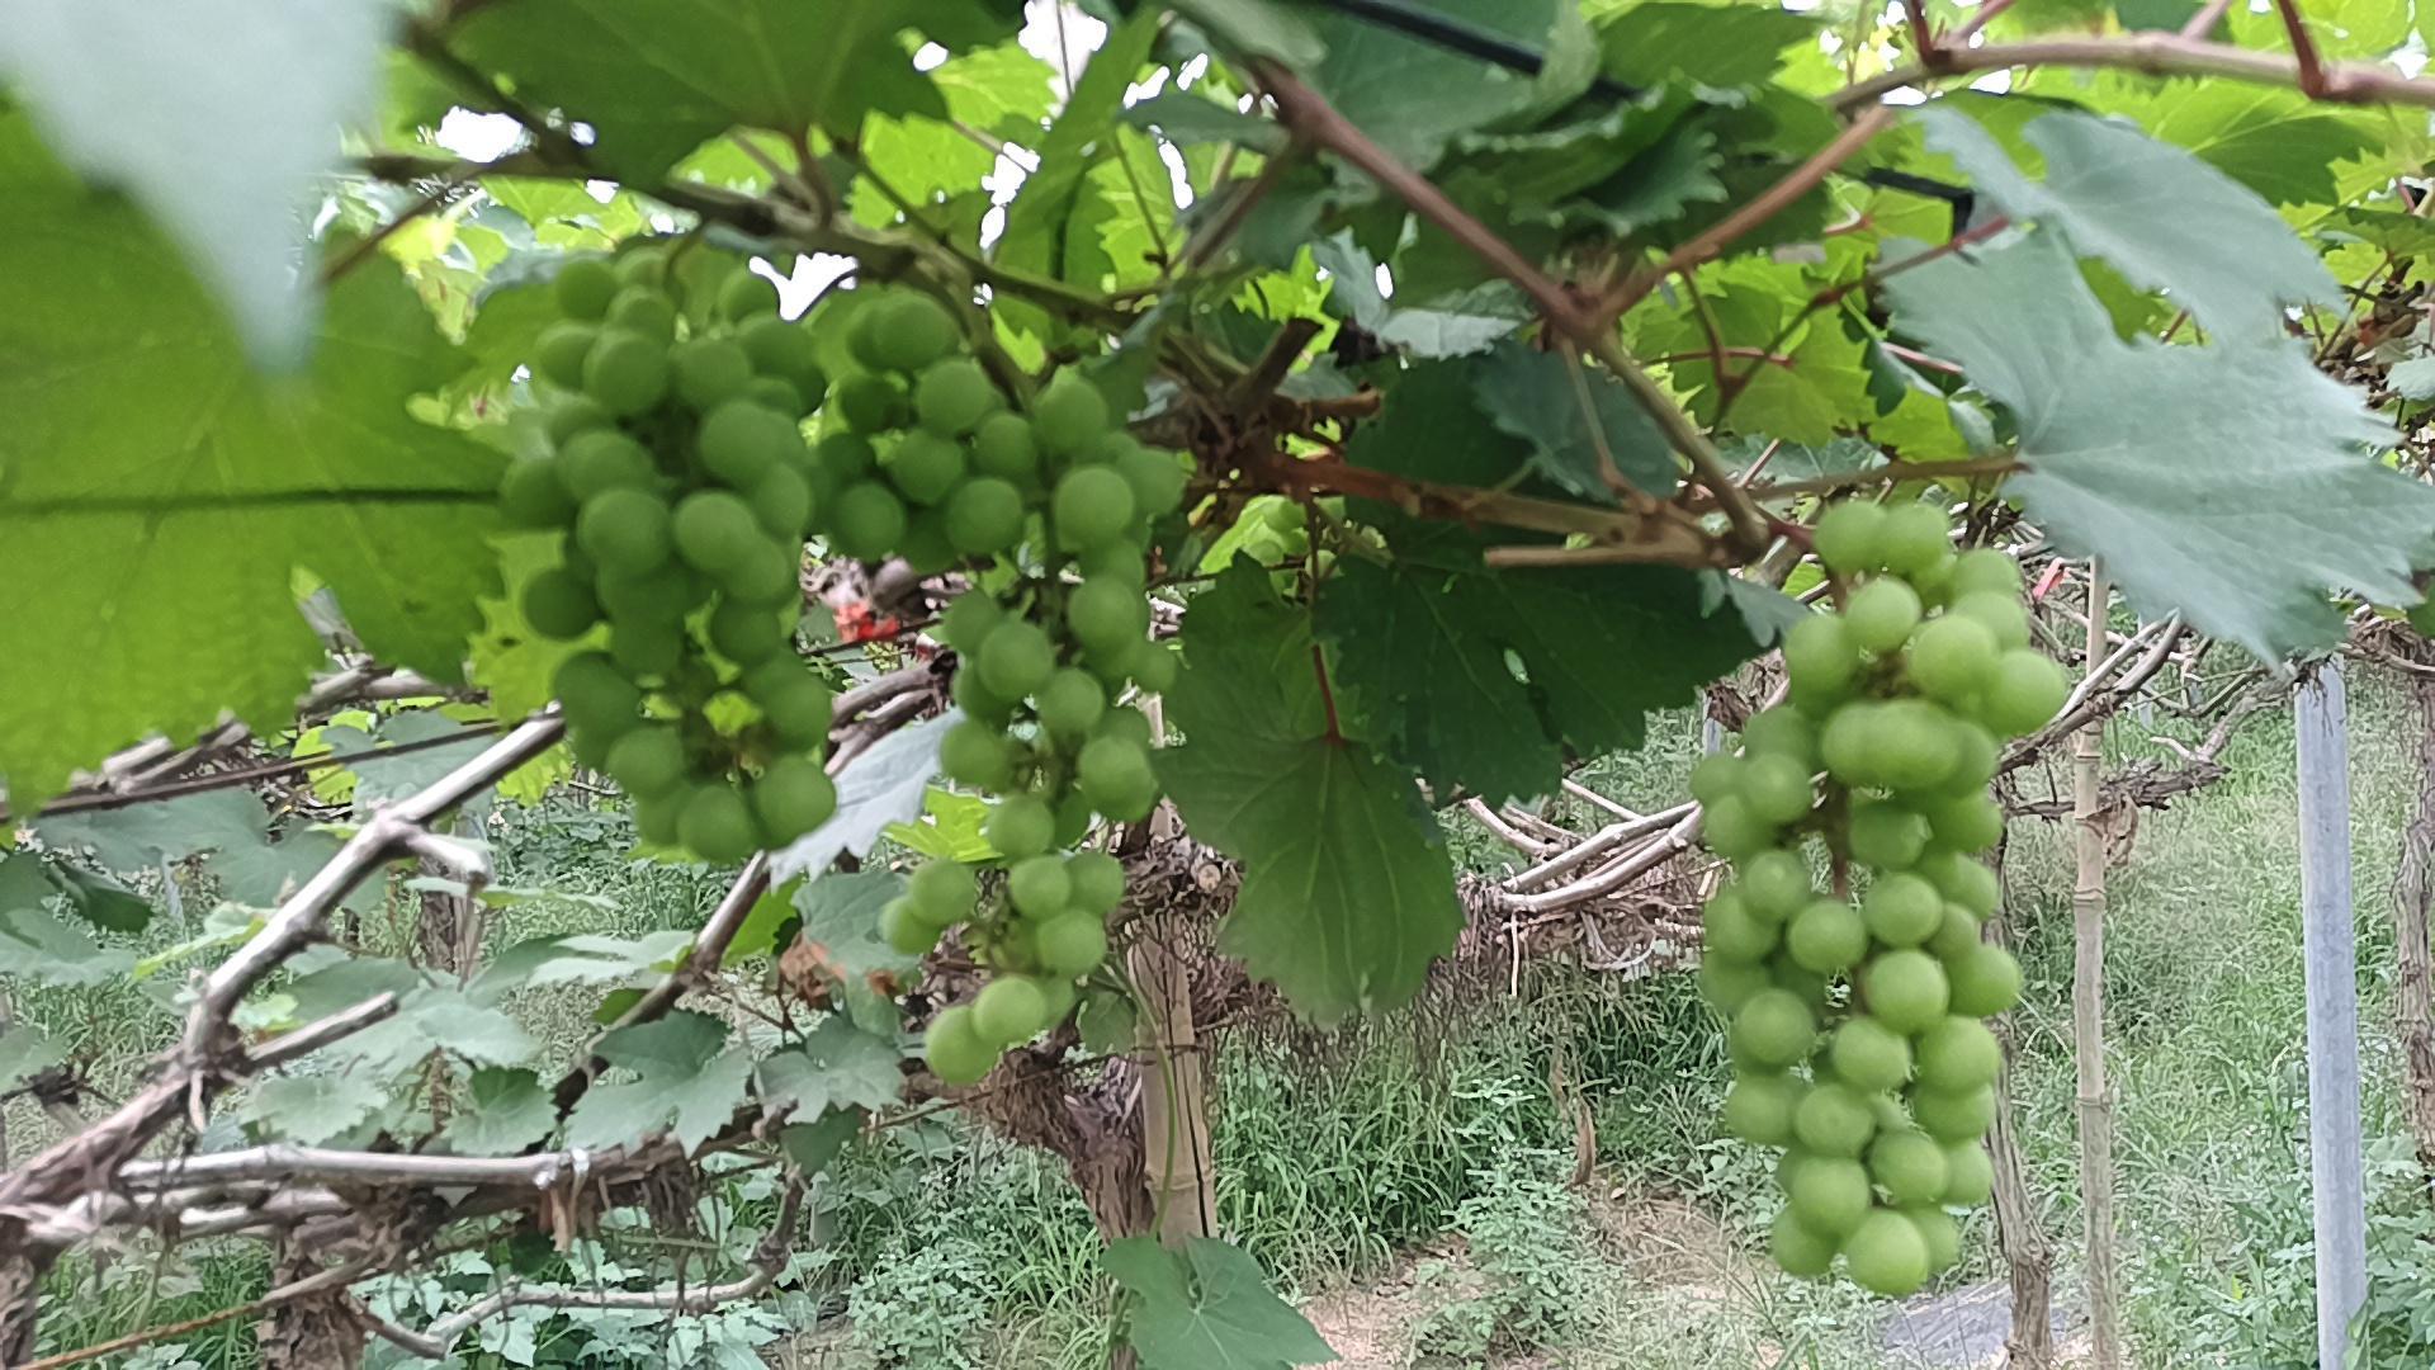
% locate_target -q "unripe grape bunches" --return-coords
[1688,502,2068,1295]
[817,292,1186,1085]
[509,249,837,864]
[1231,496,1391,609]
